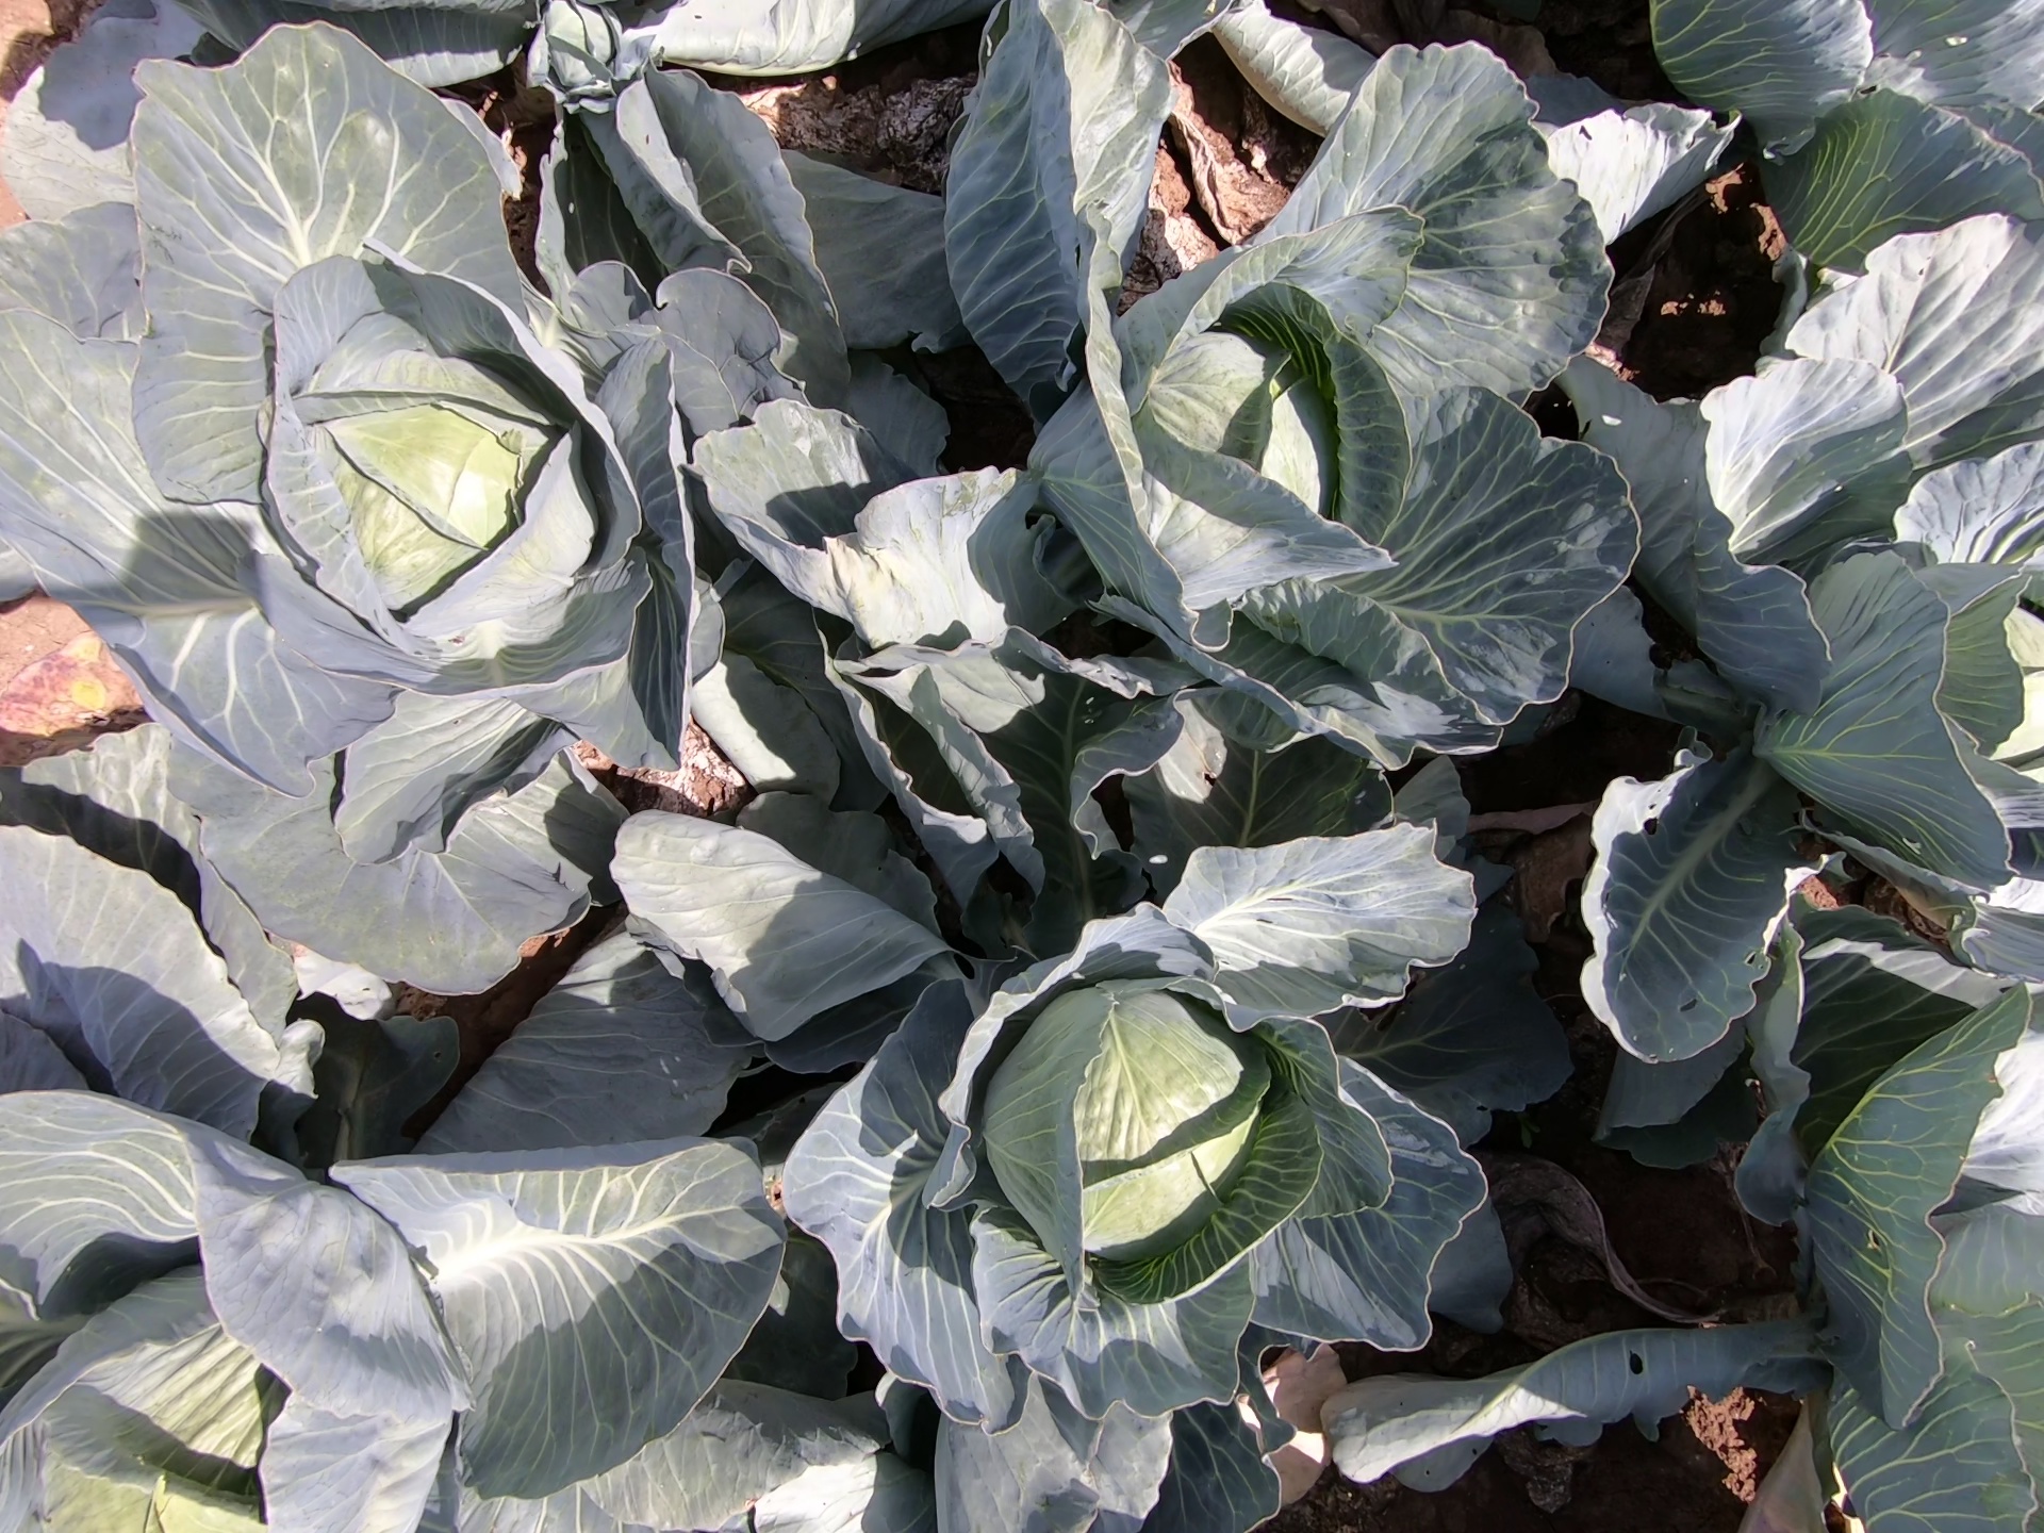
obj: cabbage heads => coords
[989,980,1275,1271]
[268,348,596,637]
[3,1243,456,1530]
[1060,328,1339,603]
[1836,577,2042,811]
